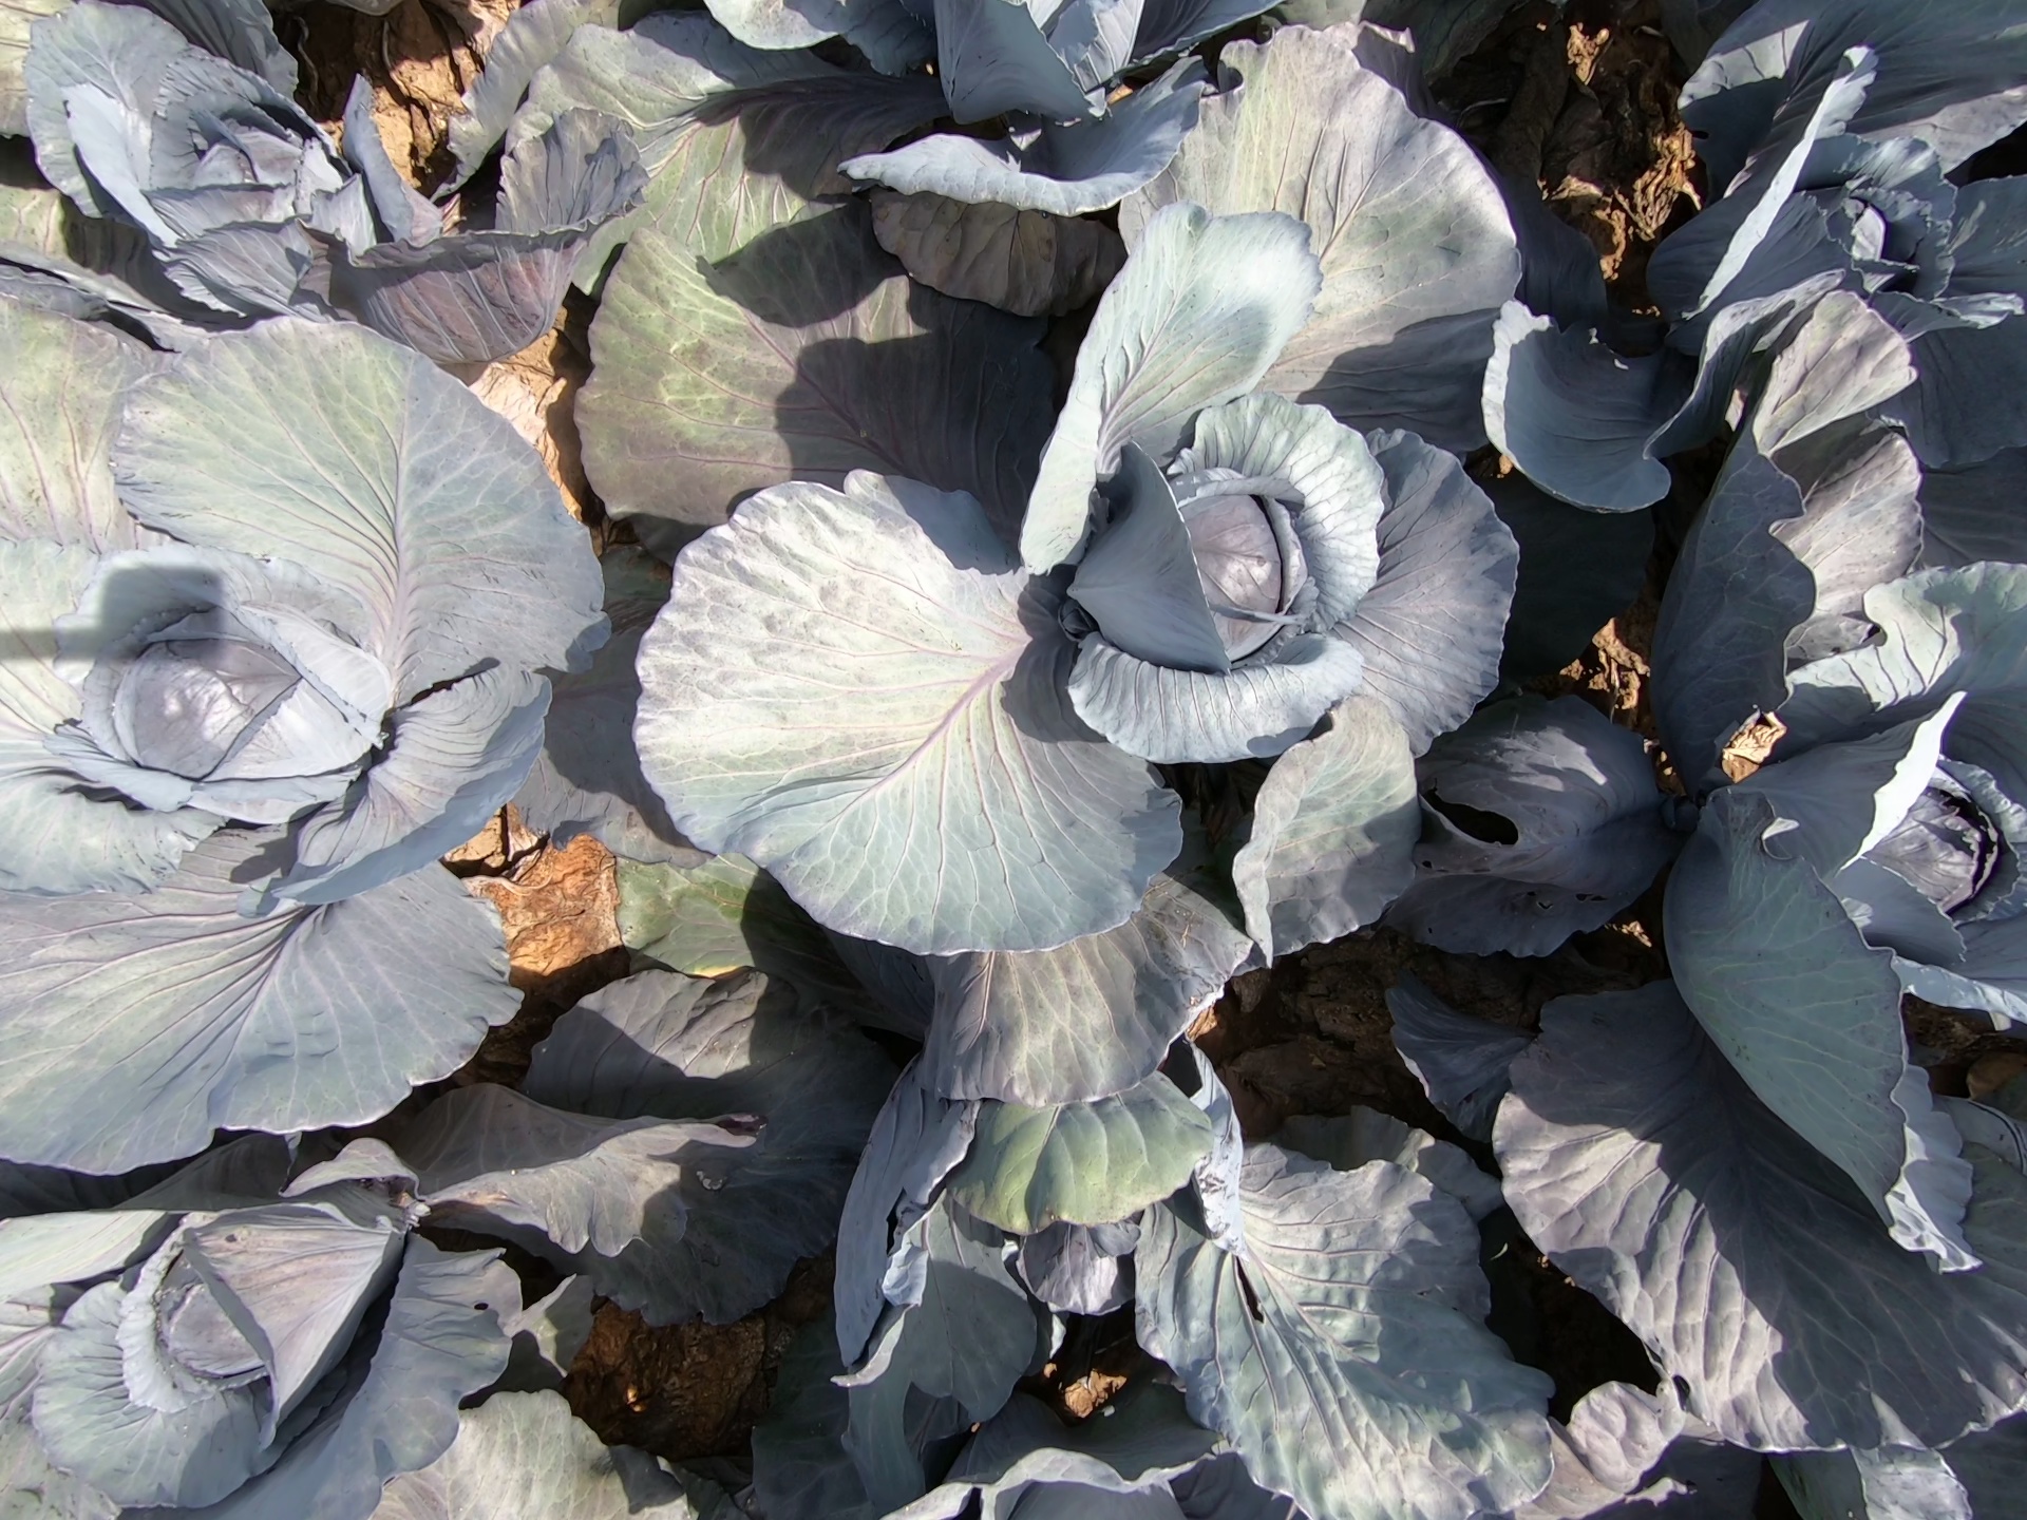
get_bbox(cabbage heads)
[151,1217,352,1376]
[1798,750,1998,923]
[1112,481,1306,662]
[193,132,347,262]
[1756,194,1891,322]
[116,606,362,787]
[973,3,1143,101]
